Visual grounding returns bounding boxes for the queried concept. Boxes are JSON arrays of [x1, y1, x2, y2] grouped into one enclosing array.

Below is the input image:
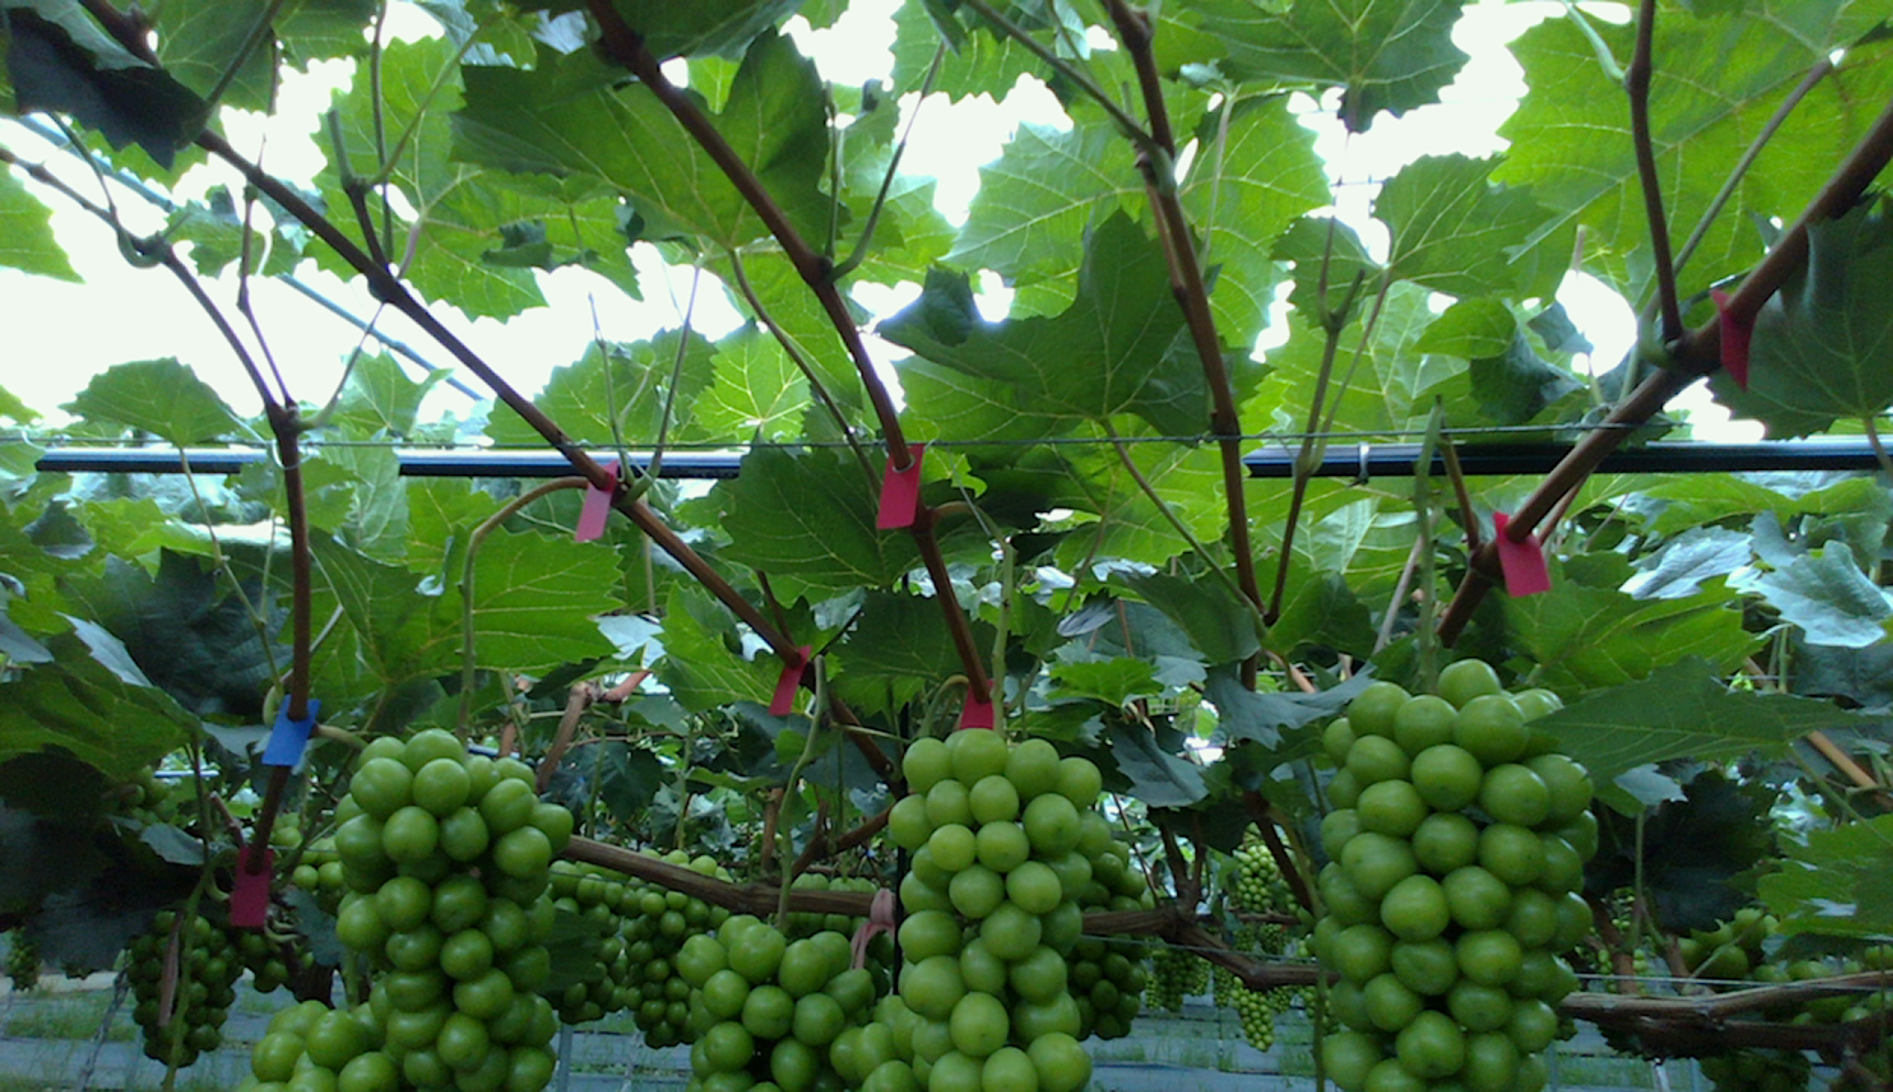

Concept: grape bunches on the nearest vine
[[1311, 661, 1599, 1090], [678, 915, 878, 1090], [334, 730, 572, 1090], [854, 726, 1112, 1090], [237, 998, 408, 1090]]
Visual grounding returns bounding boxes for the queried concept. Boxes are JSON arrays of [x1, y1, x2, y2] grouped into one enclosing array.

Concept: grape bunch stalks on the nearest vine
[[960, 502, 1010, 734], [774, 660, 819, 931], [344, 959, 364, 1004], [1411, 403, 1446, 696], [458, 478, 579, 746]]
